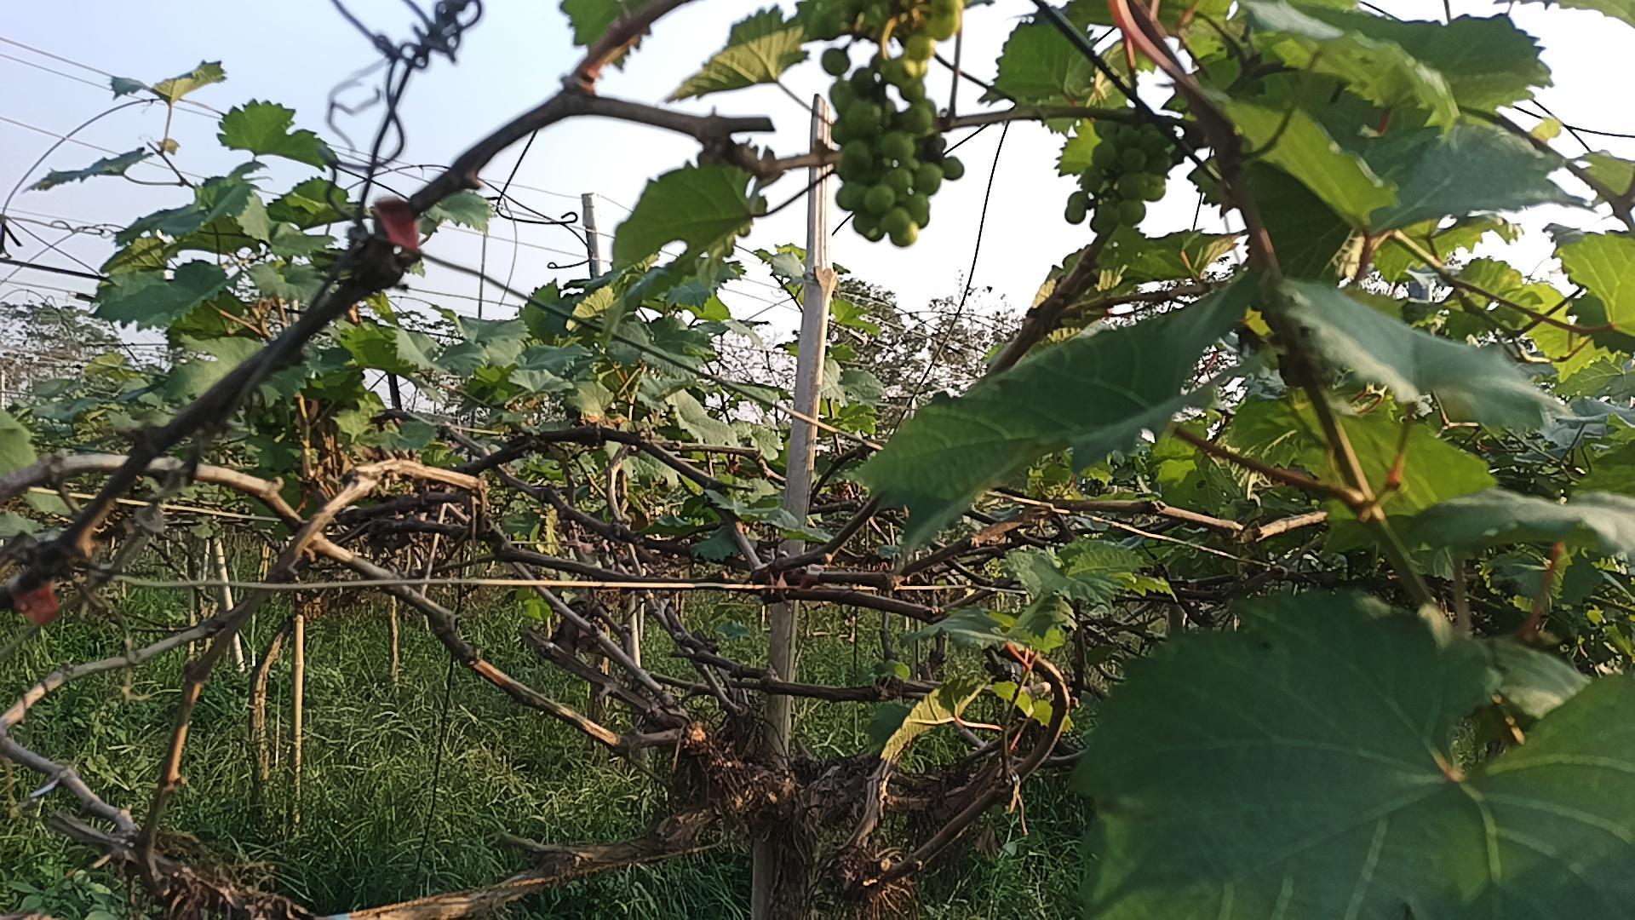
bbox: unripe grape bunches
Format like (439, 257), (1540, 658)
(1065, 106), (1174, 234)
(798, 0), (967, 246)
